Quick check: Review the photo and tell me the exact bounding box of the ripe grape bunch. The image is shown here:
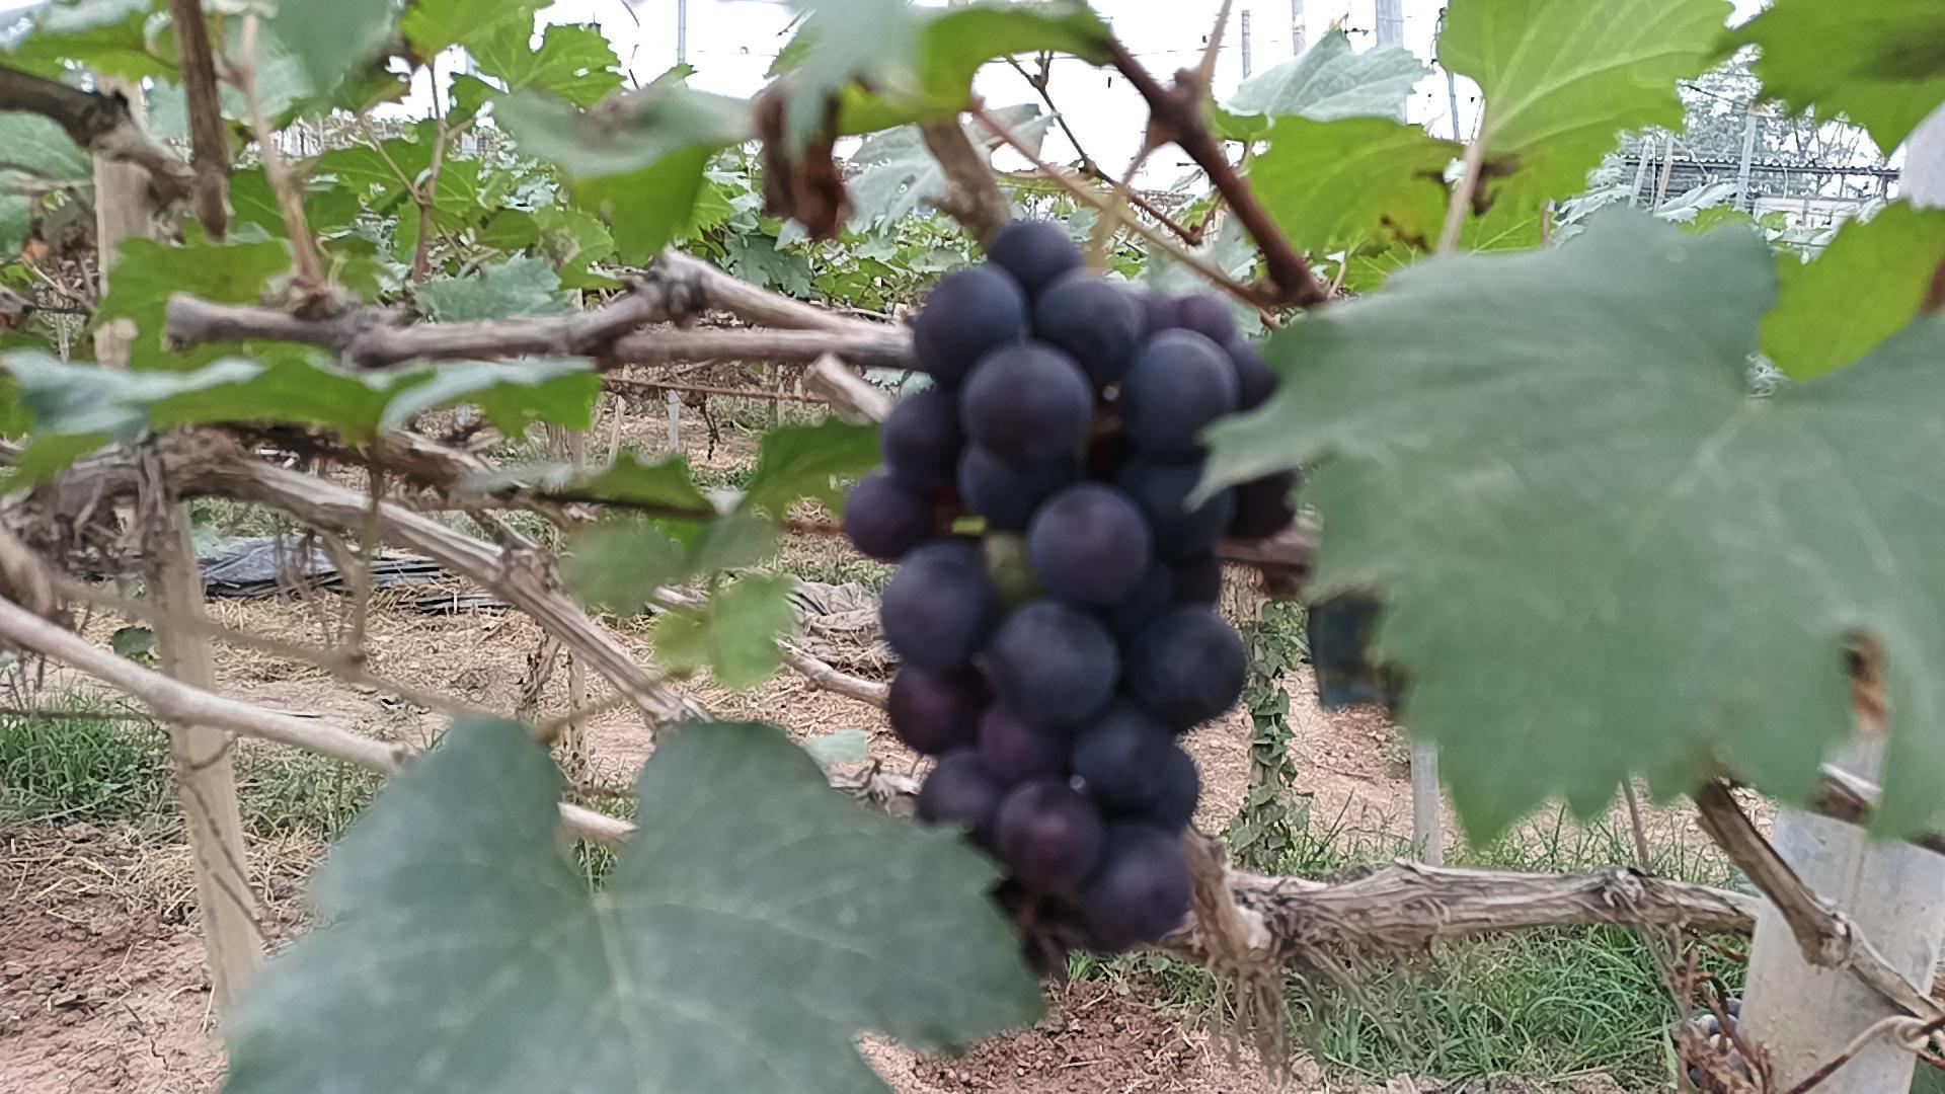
[849,221,1298,951]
